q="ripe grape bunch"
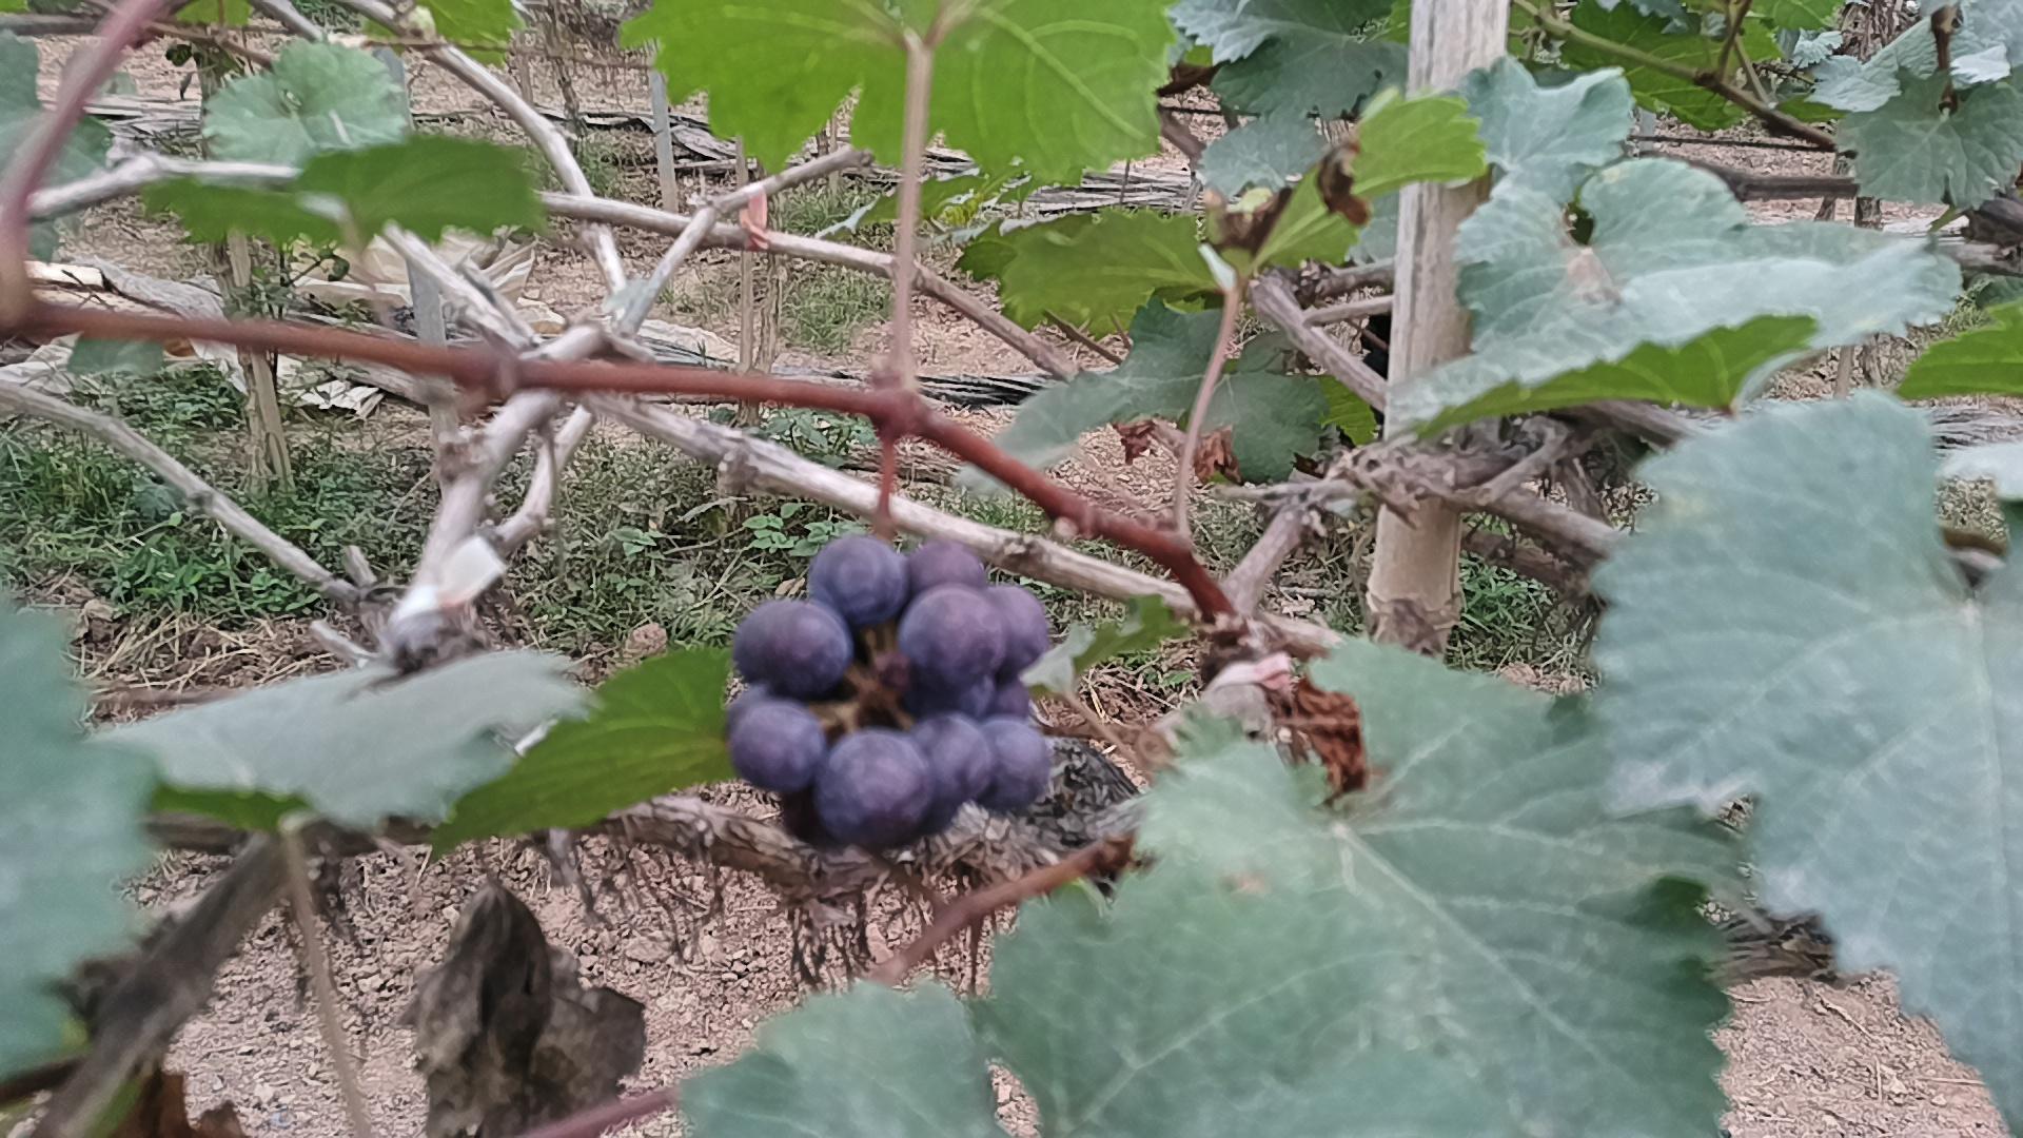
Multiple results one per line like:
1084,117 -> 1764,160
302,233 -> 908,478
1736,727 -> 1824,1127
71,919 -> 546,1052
726,535 -> 1049,851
